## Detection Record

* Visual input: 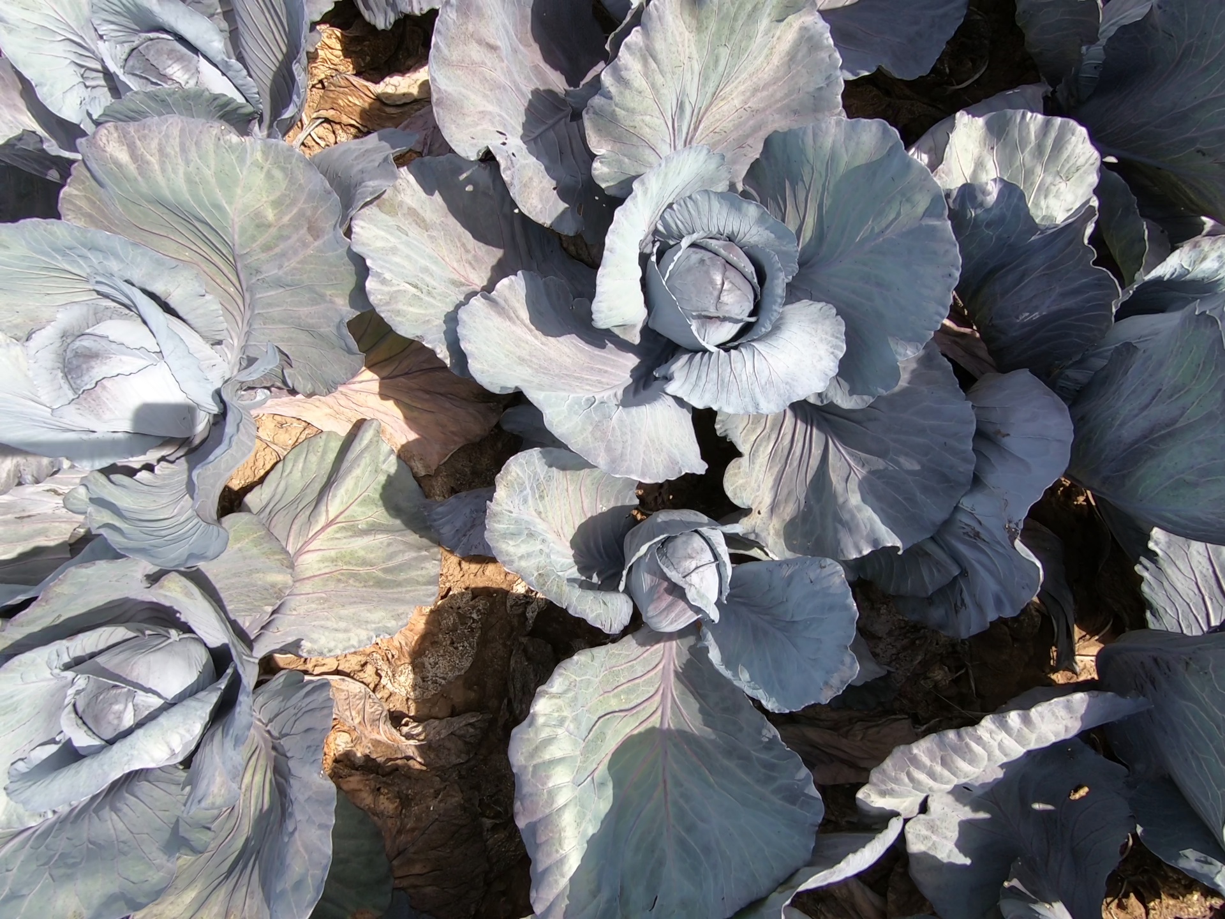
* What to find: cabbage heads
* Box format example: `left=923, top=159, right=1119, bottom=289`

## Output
left=120, top=32, right=246, bottom=136
left=62, top=638, right=205, bottom=763
left=658, top=237, right=760, bottom=345
left=57, top=318, right=217, bottom=435
left=628, top=516, right=734, bottom=634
